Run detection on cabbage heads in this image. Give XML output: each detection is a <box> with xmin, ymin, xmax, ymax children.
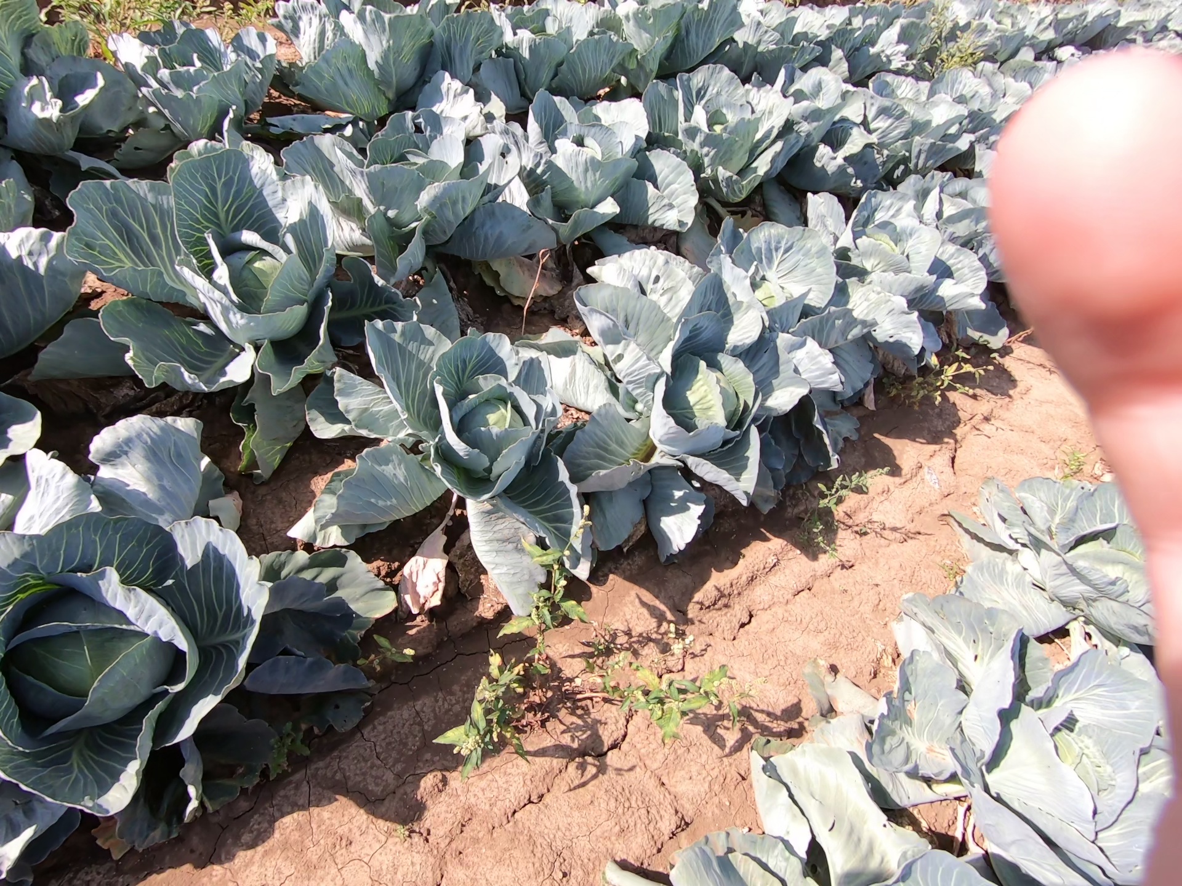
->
<box><xmin>675</xmin><ymin>365</ymin><xmax>738</xmax><ymax>431</ymax></box>
<box><xmin>739</xmin><ymin>279</ymin><xmax>794</xmax><ymax>329</ymax></box>
<box><xmin>1007</xmin><ymin>718</ymin><xmax>1102</xmax><ymax>823</ymax></box>
<box><xmin>460</xmin><ymin>396</ymin><xmax>525</xmax><ymax>467</ymax></box>
<box><xmin>211</xmin><ymin>250</ymin><xmax>292</xmax><ymax>308</ymax></box>
<box><xmin>1</xmin><ymin>580</ymin><xmax>176</xmax><ymax>717</ymax></box>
